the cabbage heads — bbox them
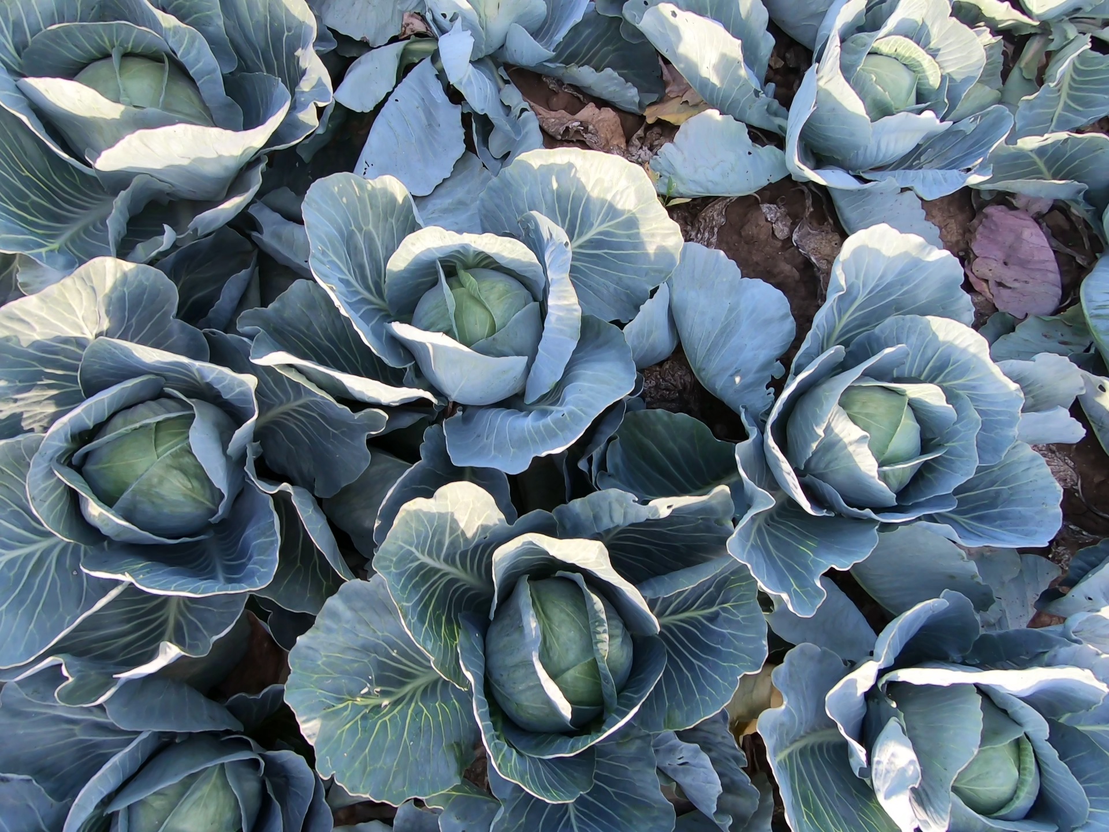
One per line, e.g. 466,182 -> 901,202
86,400 -> 240,535
109,738 -> 262,830
485,574 -> 635,732
811,377 -> 922,500
910,690 -> 1044,823
416,269 -> 535,373
429,2 -> 518,51
62,54 -> 219,177
835,50 -> 927,133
